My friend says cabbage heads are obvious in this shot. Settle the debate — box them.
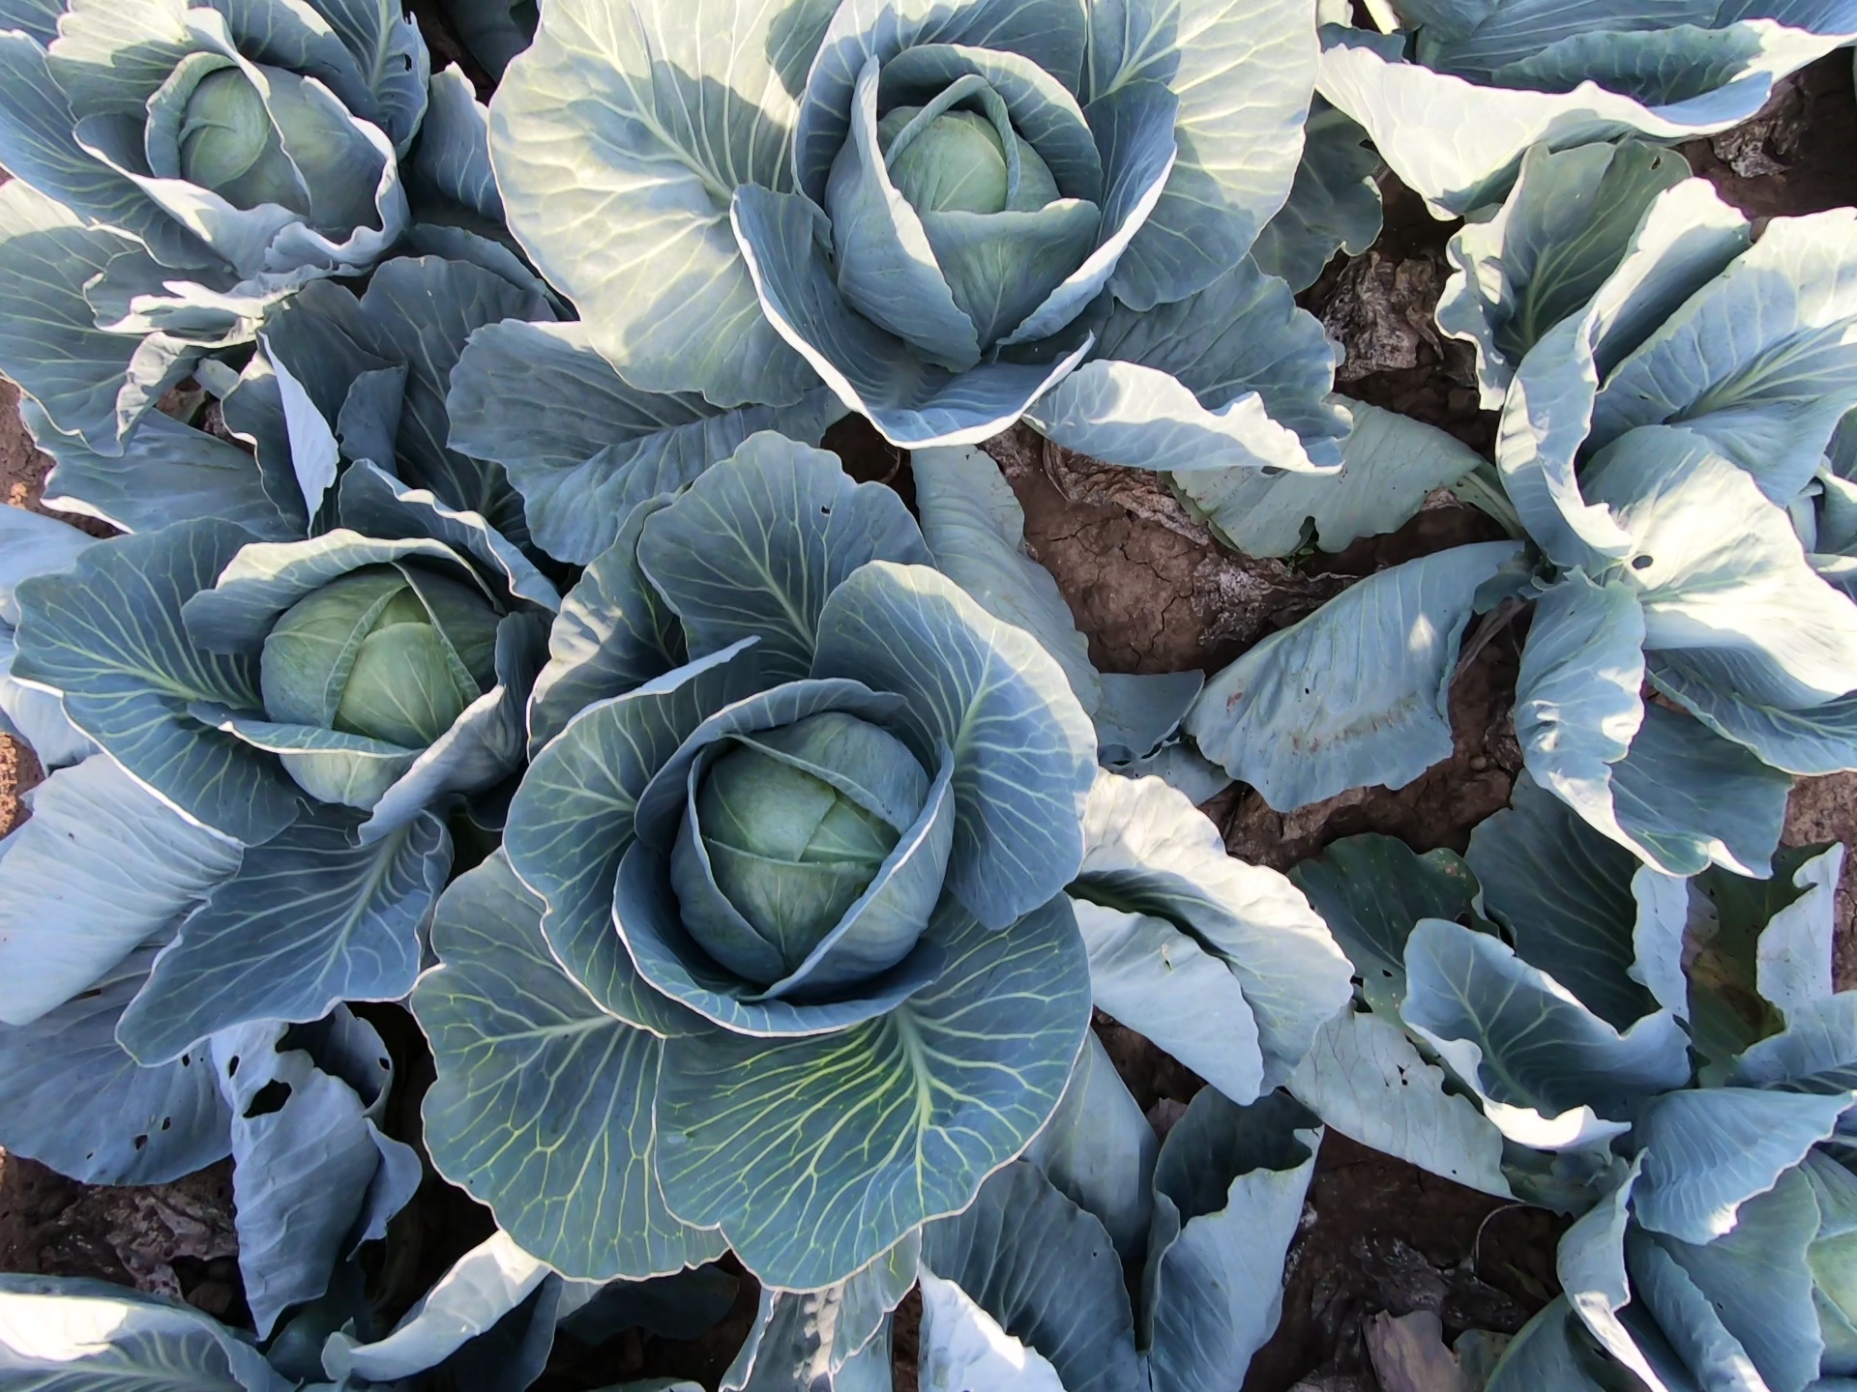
[683,720,939,970]
[167,64,369,244]
[1659,1134,1853,1374]
[1626,424,1826,598]
[264,569,516,777]
[841,111,1069,340]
